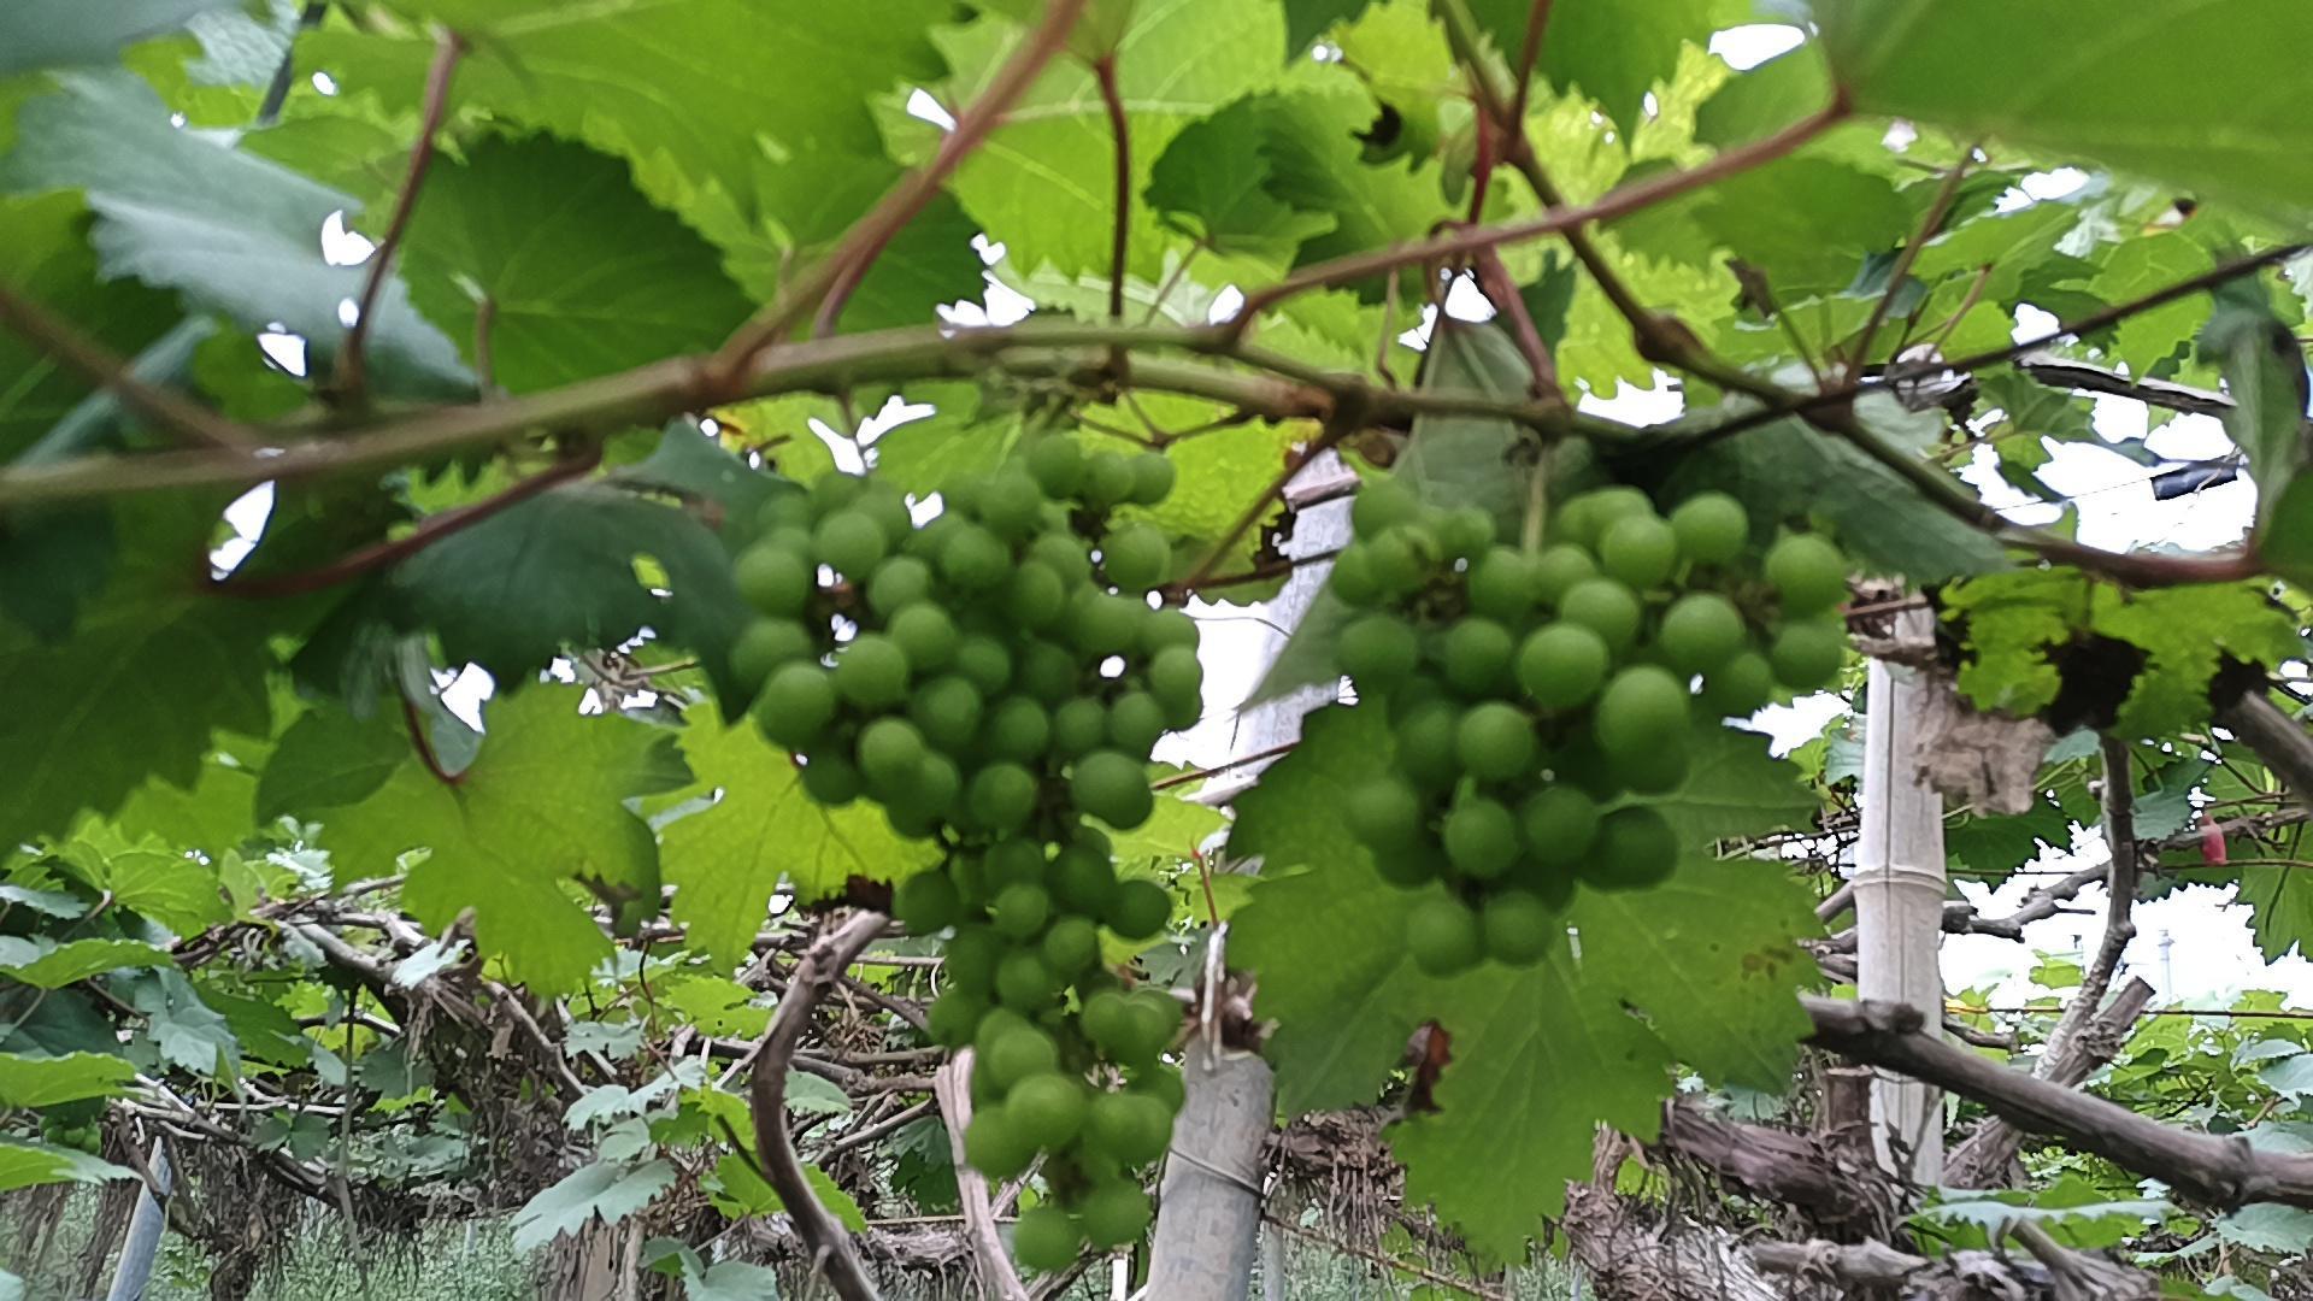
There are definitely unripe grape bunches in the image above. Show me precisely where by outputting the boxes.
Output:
[1332,479,1849,973]
[729,435,1201,1271]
